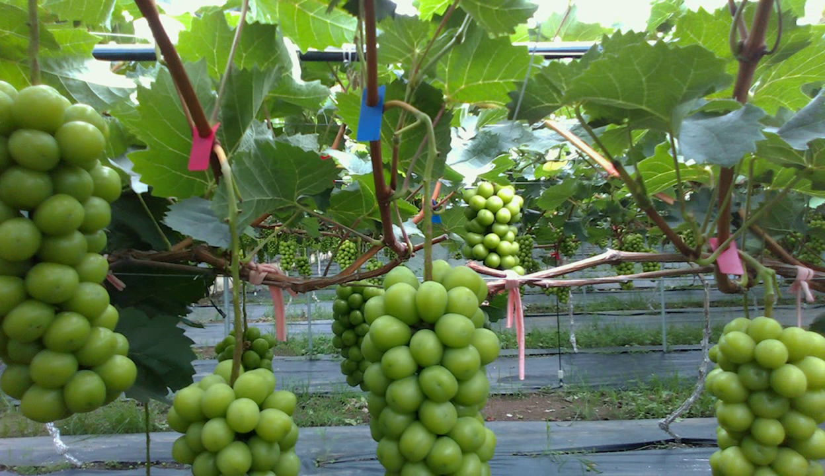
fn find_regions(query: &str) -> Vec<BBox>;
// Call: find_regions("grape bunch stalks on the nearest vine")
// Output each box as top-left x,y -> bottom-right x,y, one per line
213,143 -> 243,387
737,248 -> 775,317
27,1 -> 40,85
385,100 -> 438,282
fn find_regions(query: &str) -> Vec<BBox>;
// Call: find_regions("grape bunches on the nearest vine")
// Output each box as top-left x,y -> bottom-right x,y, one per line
705,316 -> 824,475
362,260 -> 500,475
167,360 -> 301,475
0,79 -> 136,422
